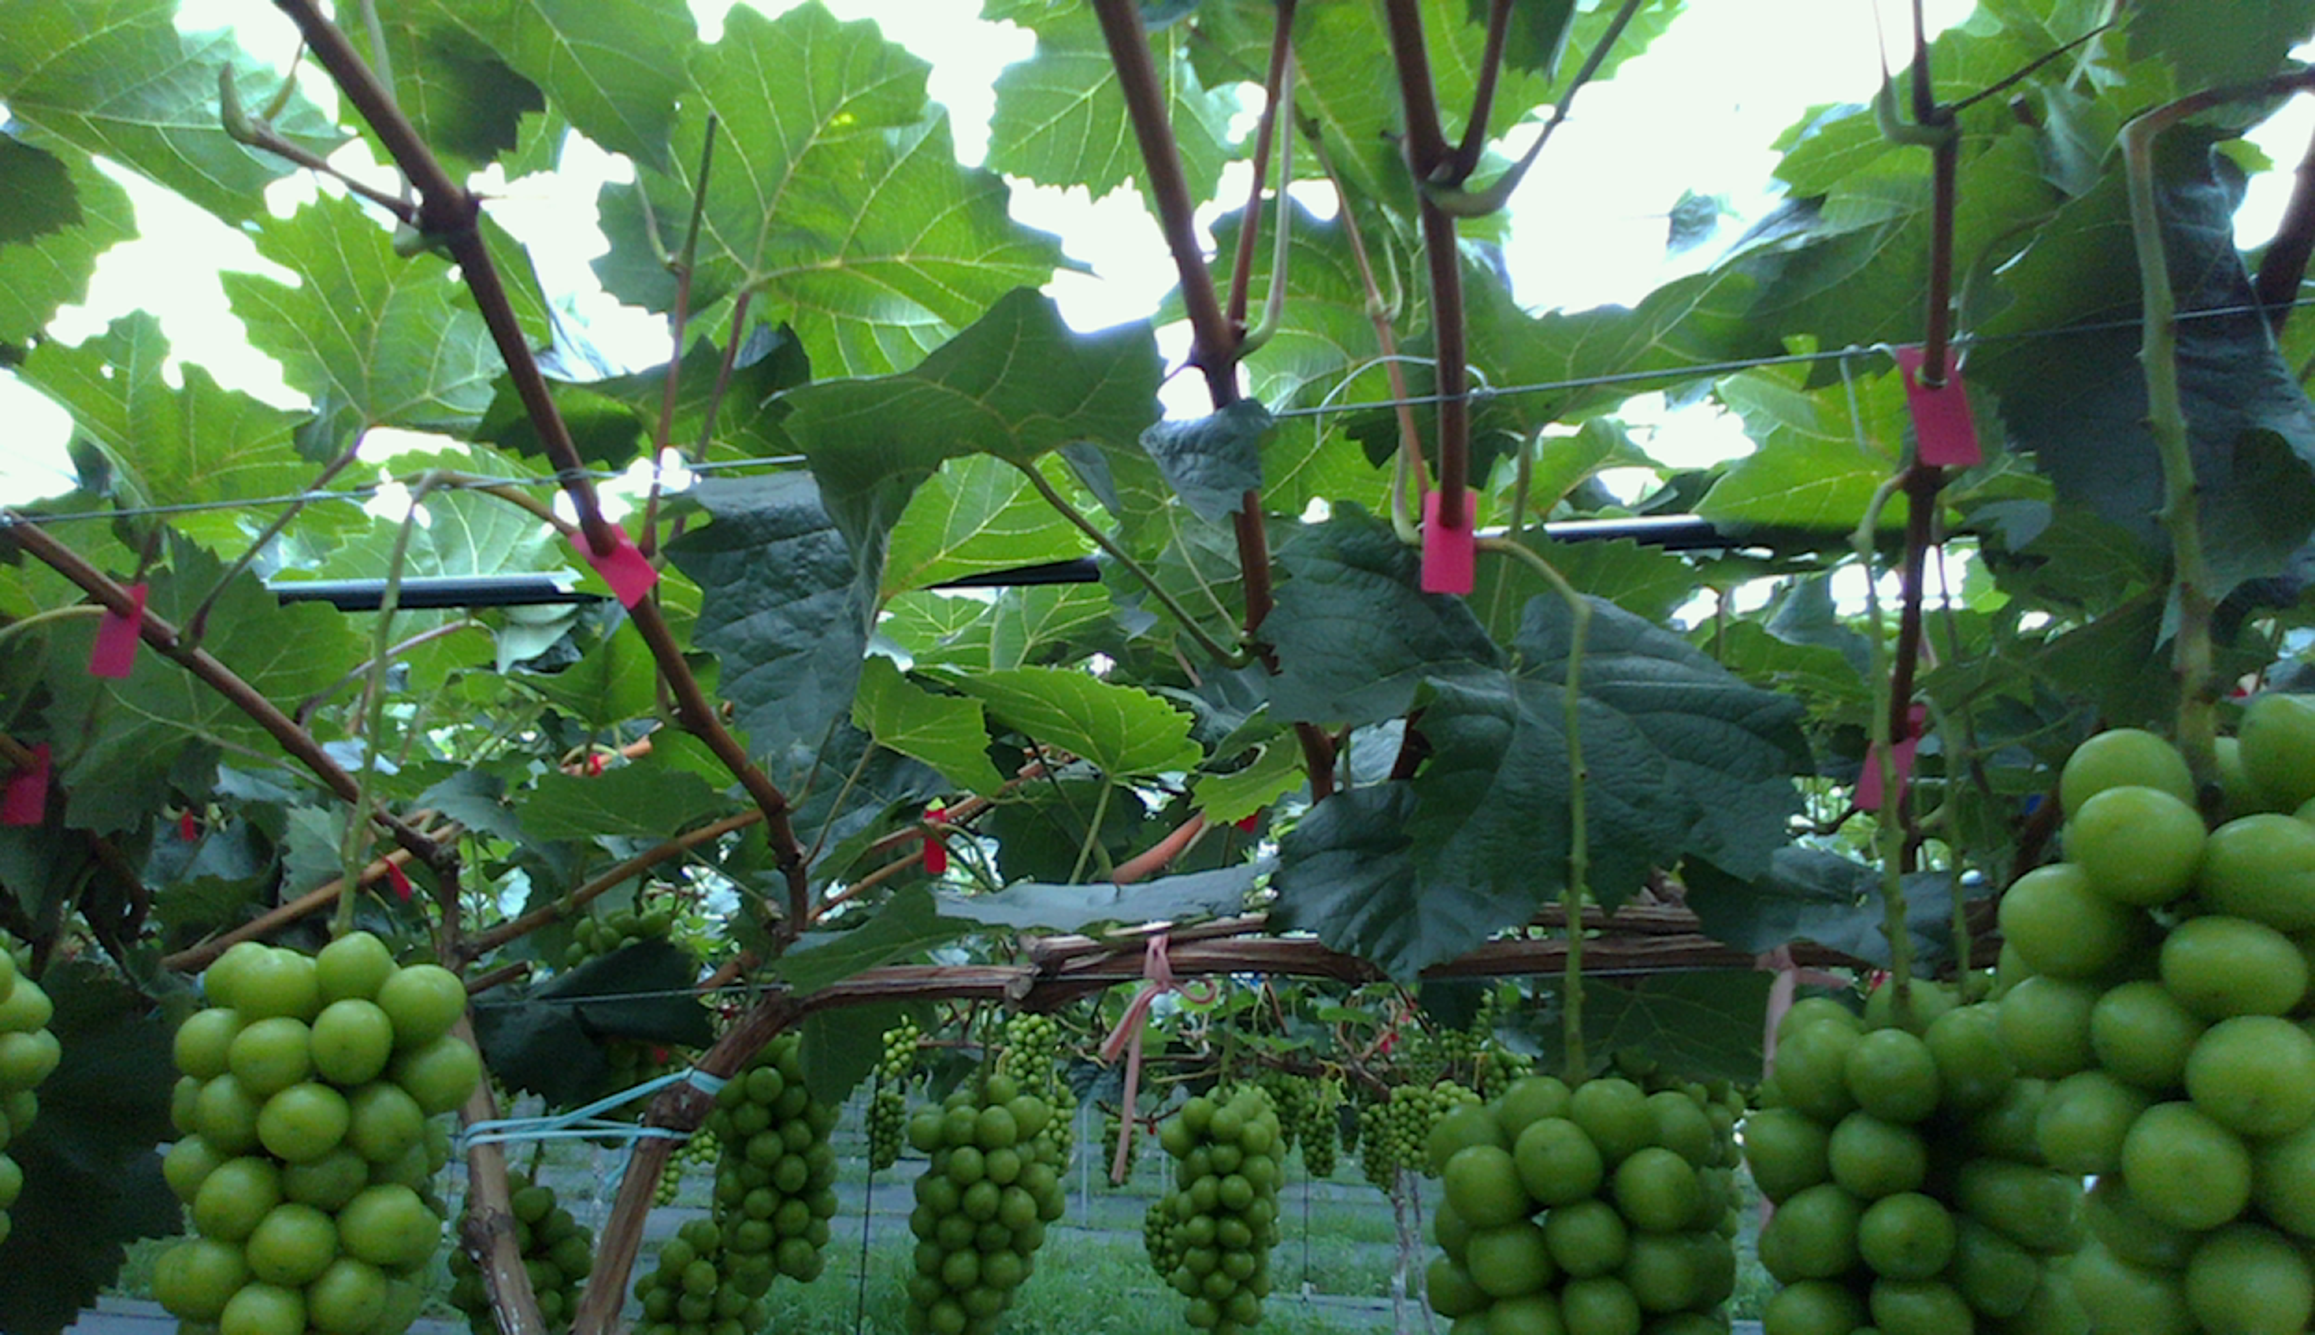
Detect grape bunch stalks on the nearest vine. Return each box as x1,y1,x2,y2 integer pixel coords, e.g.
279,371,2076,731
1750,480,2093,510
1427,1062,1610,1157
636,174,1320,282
1846,477,1912,1033
1475,536,1593,1081
2122,143,2237,831
330,482,430,940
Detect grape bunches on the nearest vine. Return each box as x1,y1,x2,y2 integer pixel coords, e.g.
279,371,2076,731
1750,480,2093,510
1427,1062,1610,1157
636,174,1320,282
1425,1077,1738,1333
1742,979,2089,1333
150,931,482,1333
1994,692,2313,1331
